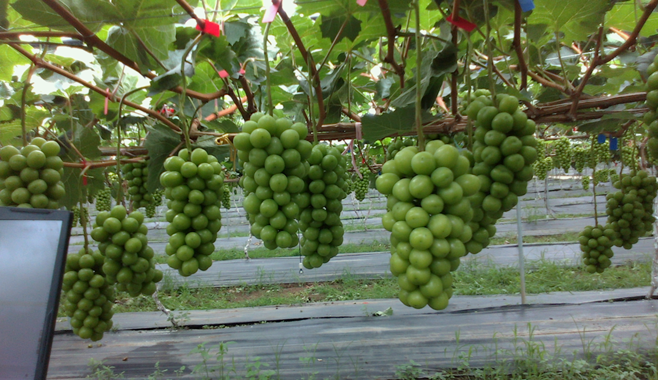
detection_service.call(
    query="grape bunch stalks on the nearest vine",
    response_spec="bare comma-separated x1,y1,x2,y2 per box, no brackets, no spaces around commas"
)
411,1,425,151
264,24,274,117
79,167,89,254
21,65,37,147
116,85,149,205
307,49,318,144
178,35,201,160
483,0,497,106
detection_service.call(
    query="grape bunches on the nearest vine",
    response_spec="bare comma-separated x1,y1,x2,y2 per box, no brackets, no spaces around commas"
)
466,93,537,218
91,205,162,297
159,148,224,277
375,140,480,311
0,137,65,210
231,112,313,250
61,249,114,343
293,144,347,269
